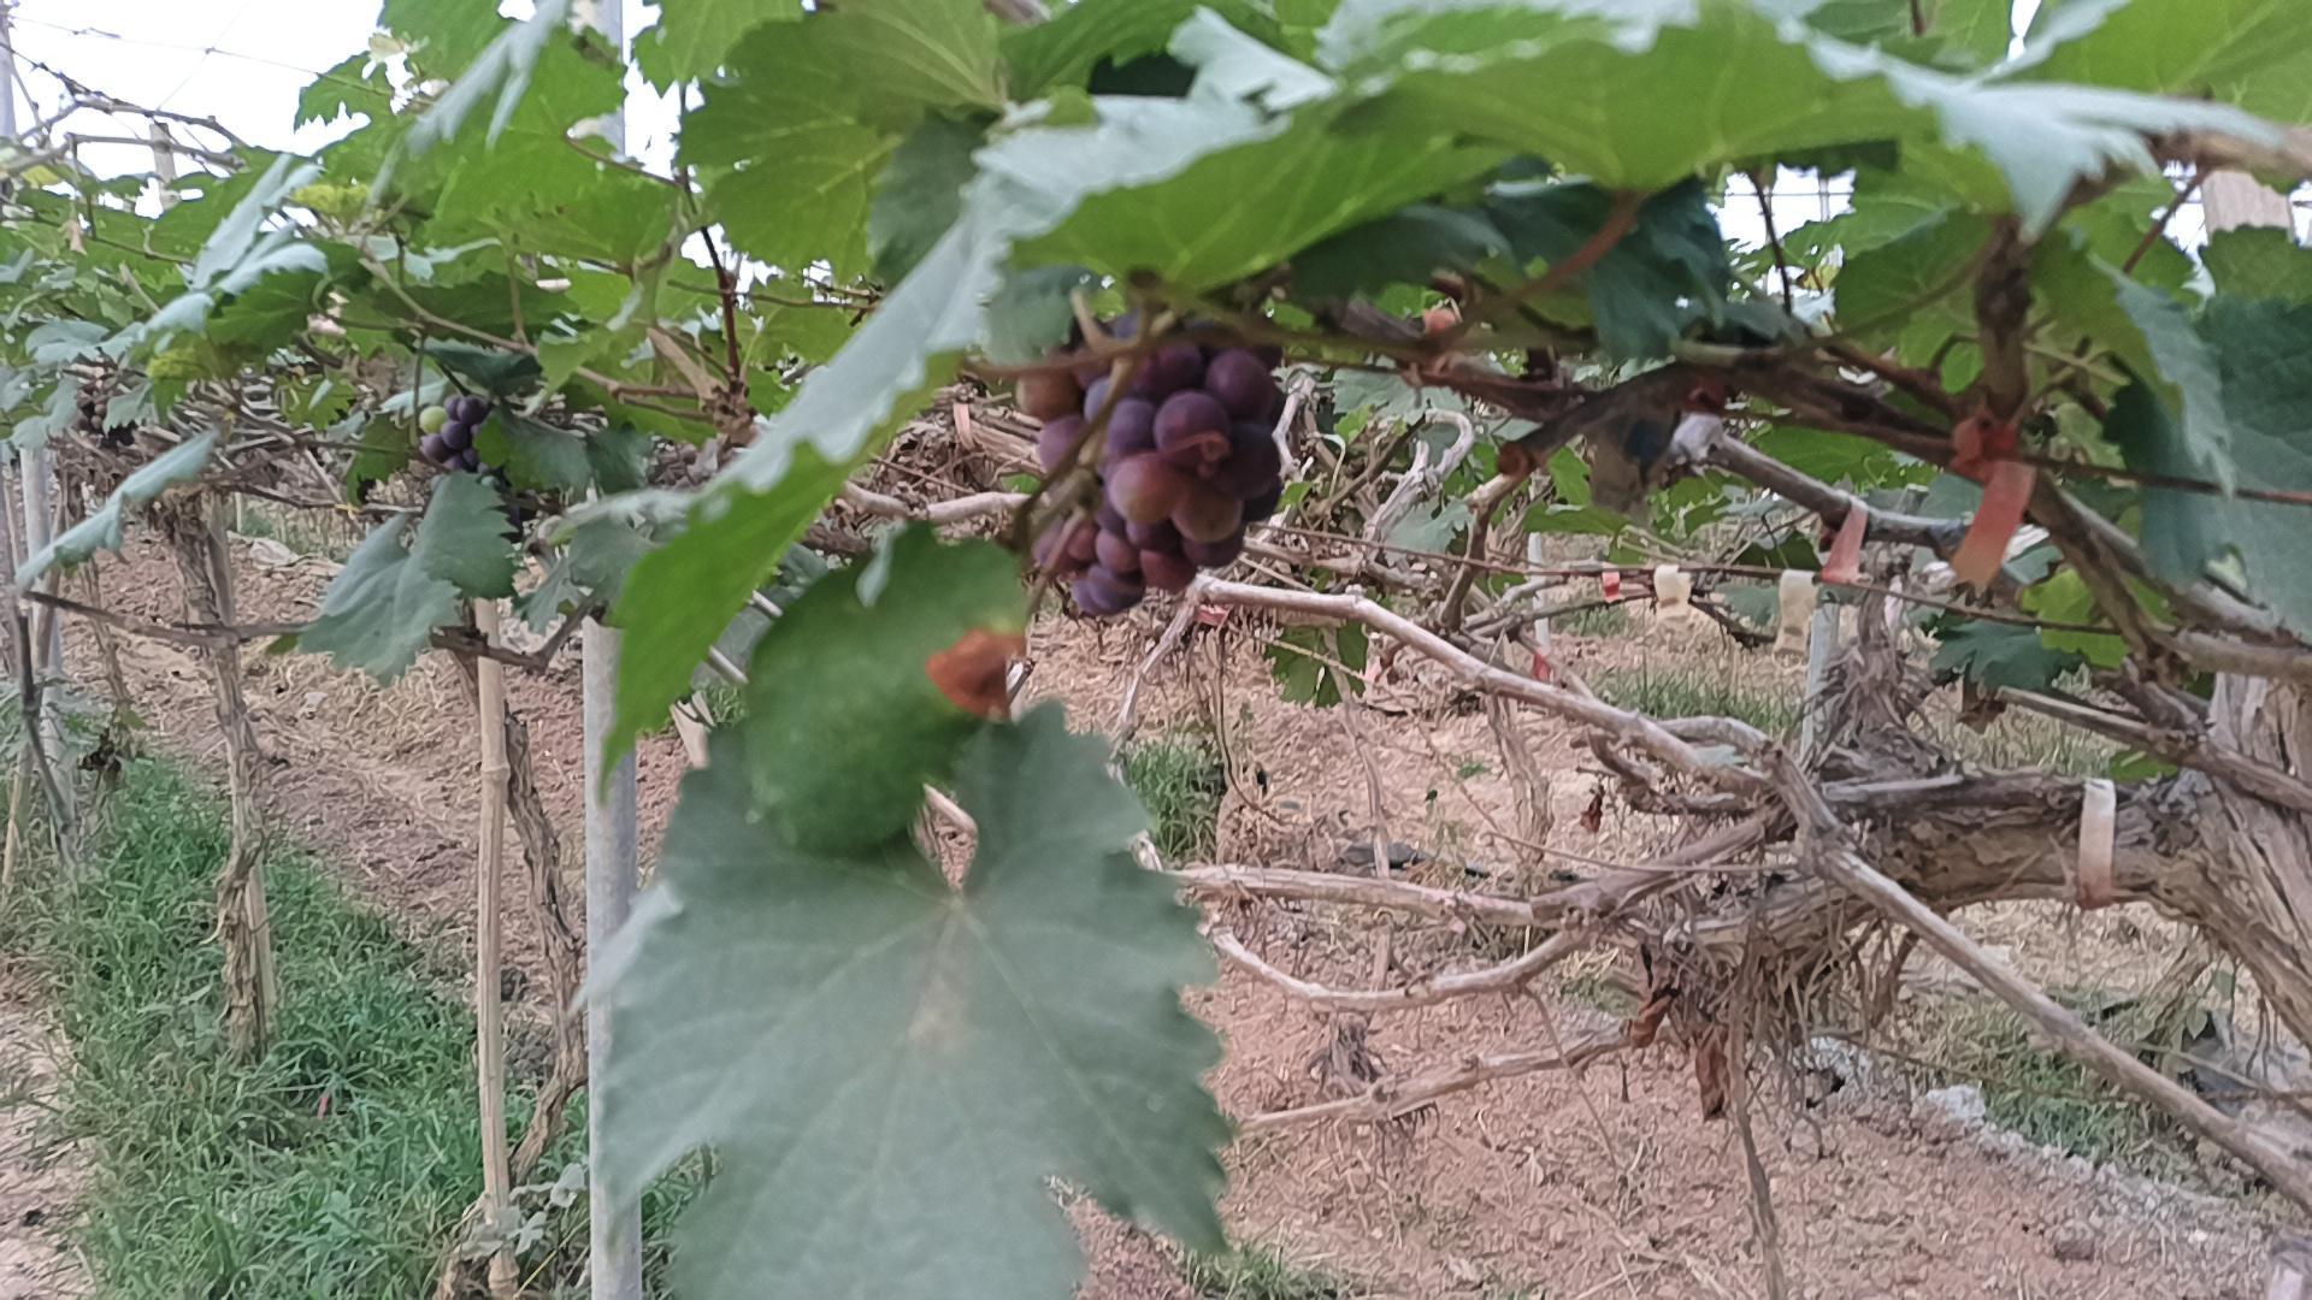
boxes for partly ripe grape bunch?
[413,395,541,543]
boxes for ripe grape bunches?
[1018,294,1282,616]
[72,373,137,453]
